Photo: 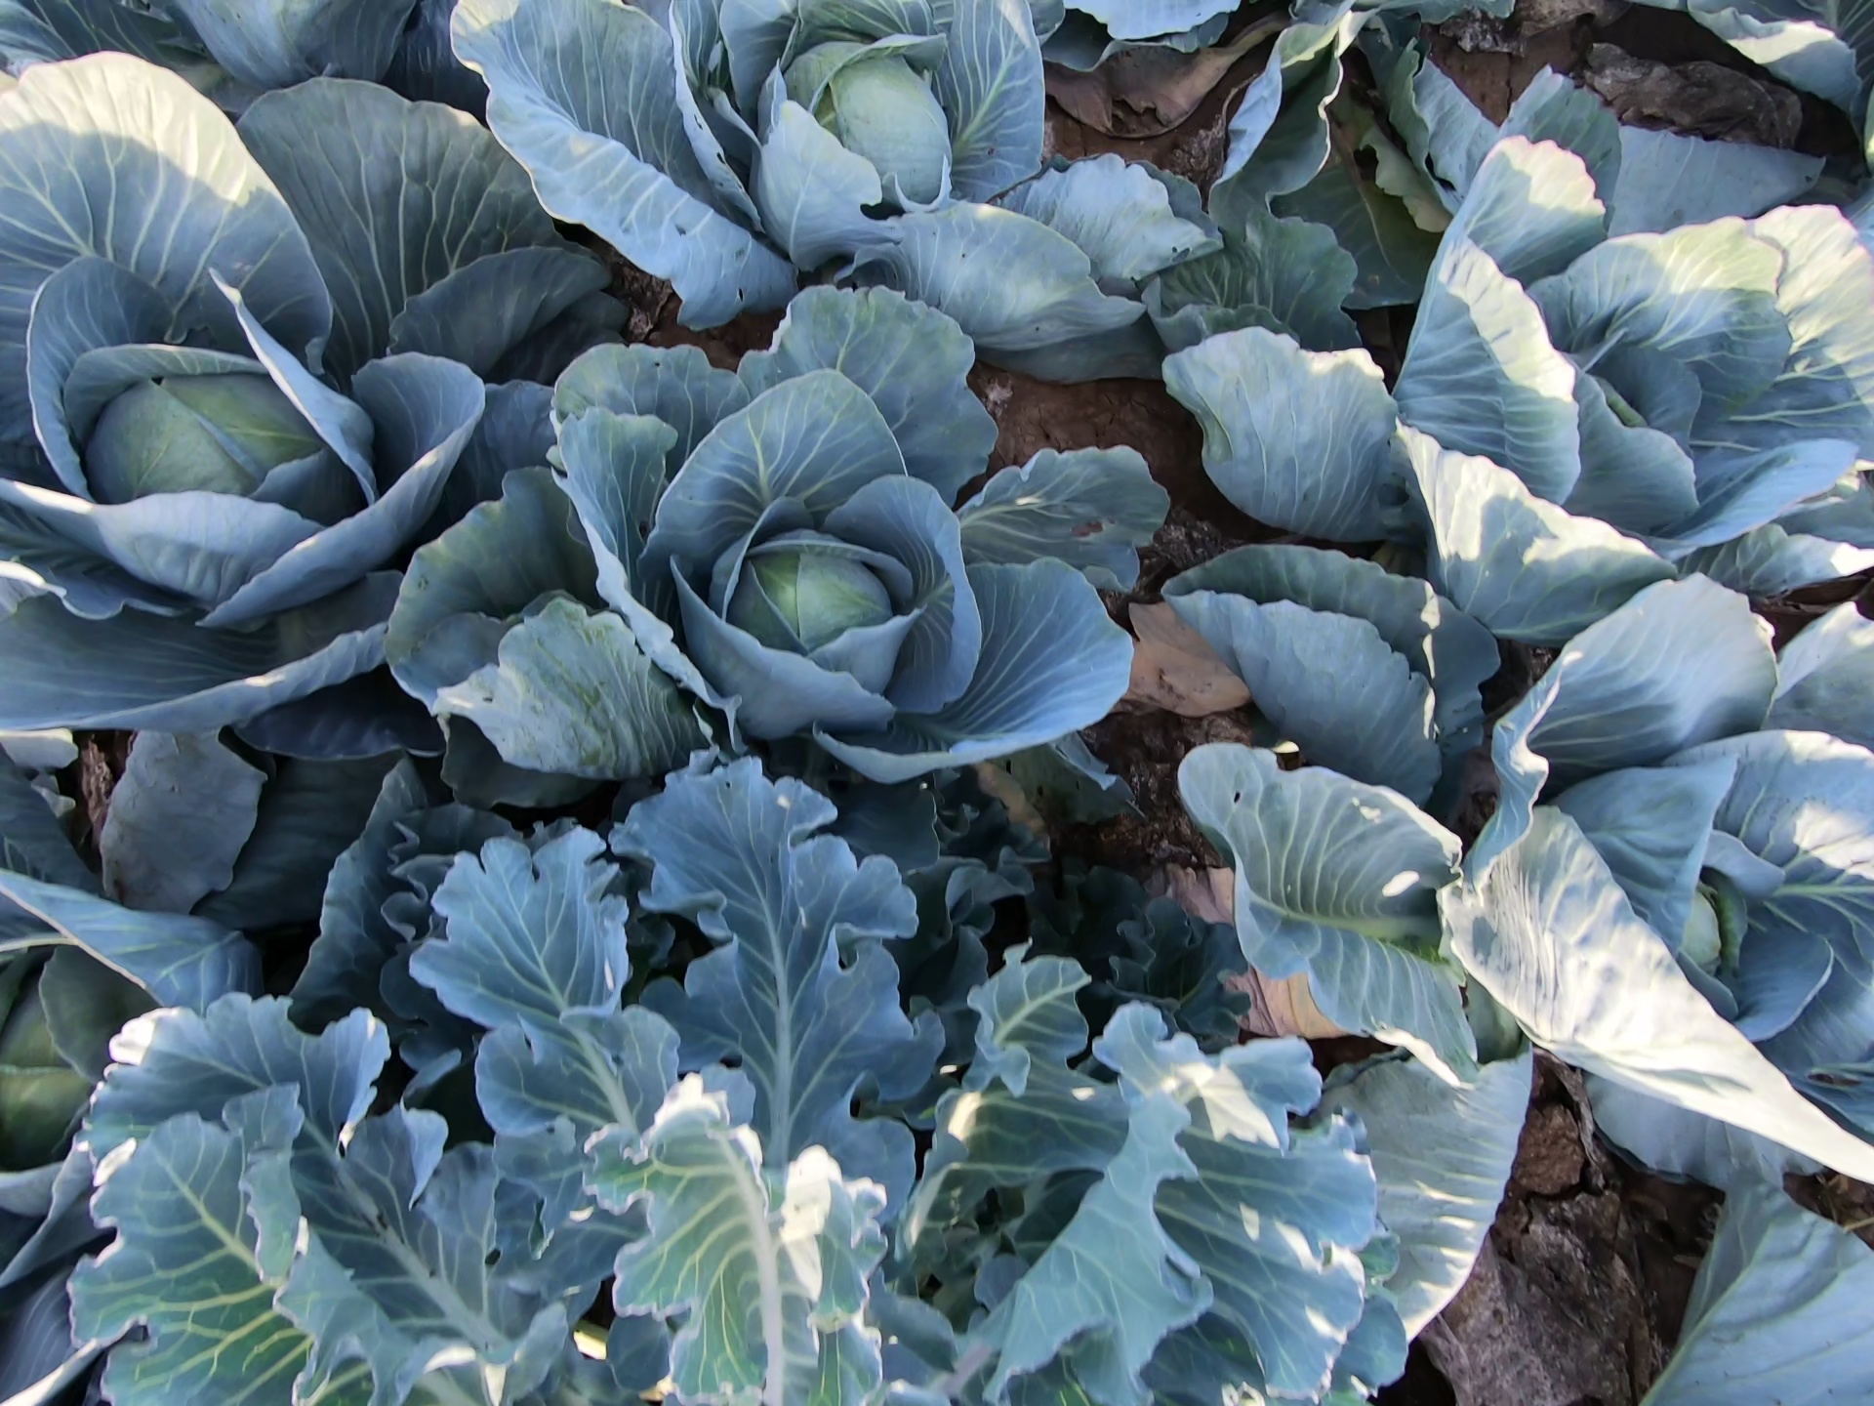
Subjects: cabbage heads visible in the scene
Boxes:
[1606,866,1726,1005]
[3,945,183,1174]
[716,524,893,705]
[1505,372,1656,540]
[82,363,364,590]
[768,33,952,220]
